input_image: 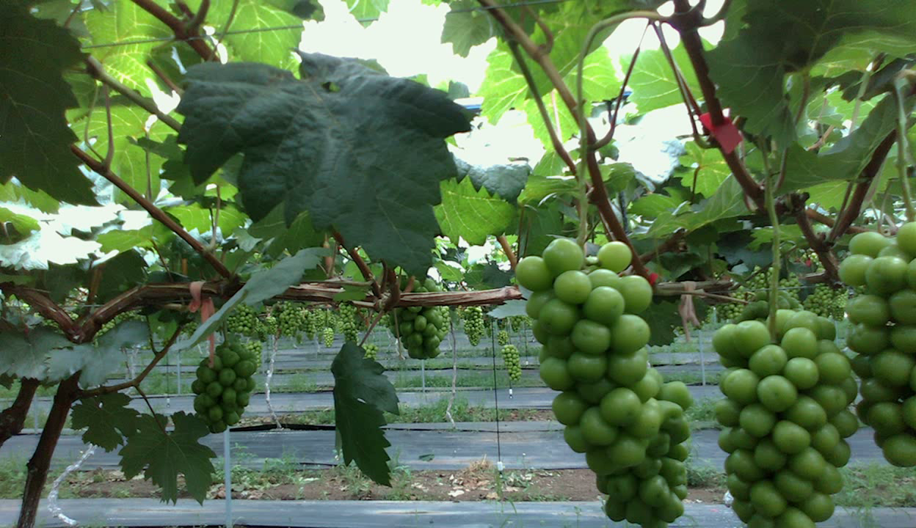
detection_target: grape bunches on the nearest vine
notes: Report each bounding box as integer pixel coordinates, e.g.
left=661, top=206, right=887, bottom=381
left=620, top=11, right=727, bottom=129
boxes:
left=596, top=381, right=694, bottom=527
left=515, top=238, right=664, bottom=475
left=839, top=221, right=915, bottom=468
left=710, top=309, right=859, bottom=527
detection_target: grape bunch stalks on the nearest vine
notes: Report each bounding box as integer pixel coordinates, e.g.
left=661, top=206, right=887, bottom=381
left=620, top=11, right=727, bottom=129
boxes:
left=892, top=69, right=915, bottom=221
left=756, top=136, right=780, bottom=345
left=576, top=10, right=661, bottom=247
